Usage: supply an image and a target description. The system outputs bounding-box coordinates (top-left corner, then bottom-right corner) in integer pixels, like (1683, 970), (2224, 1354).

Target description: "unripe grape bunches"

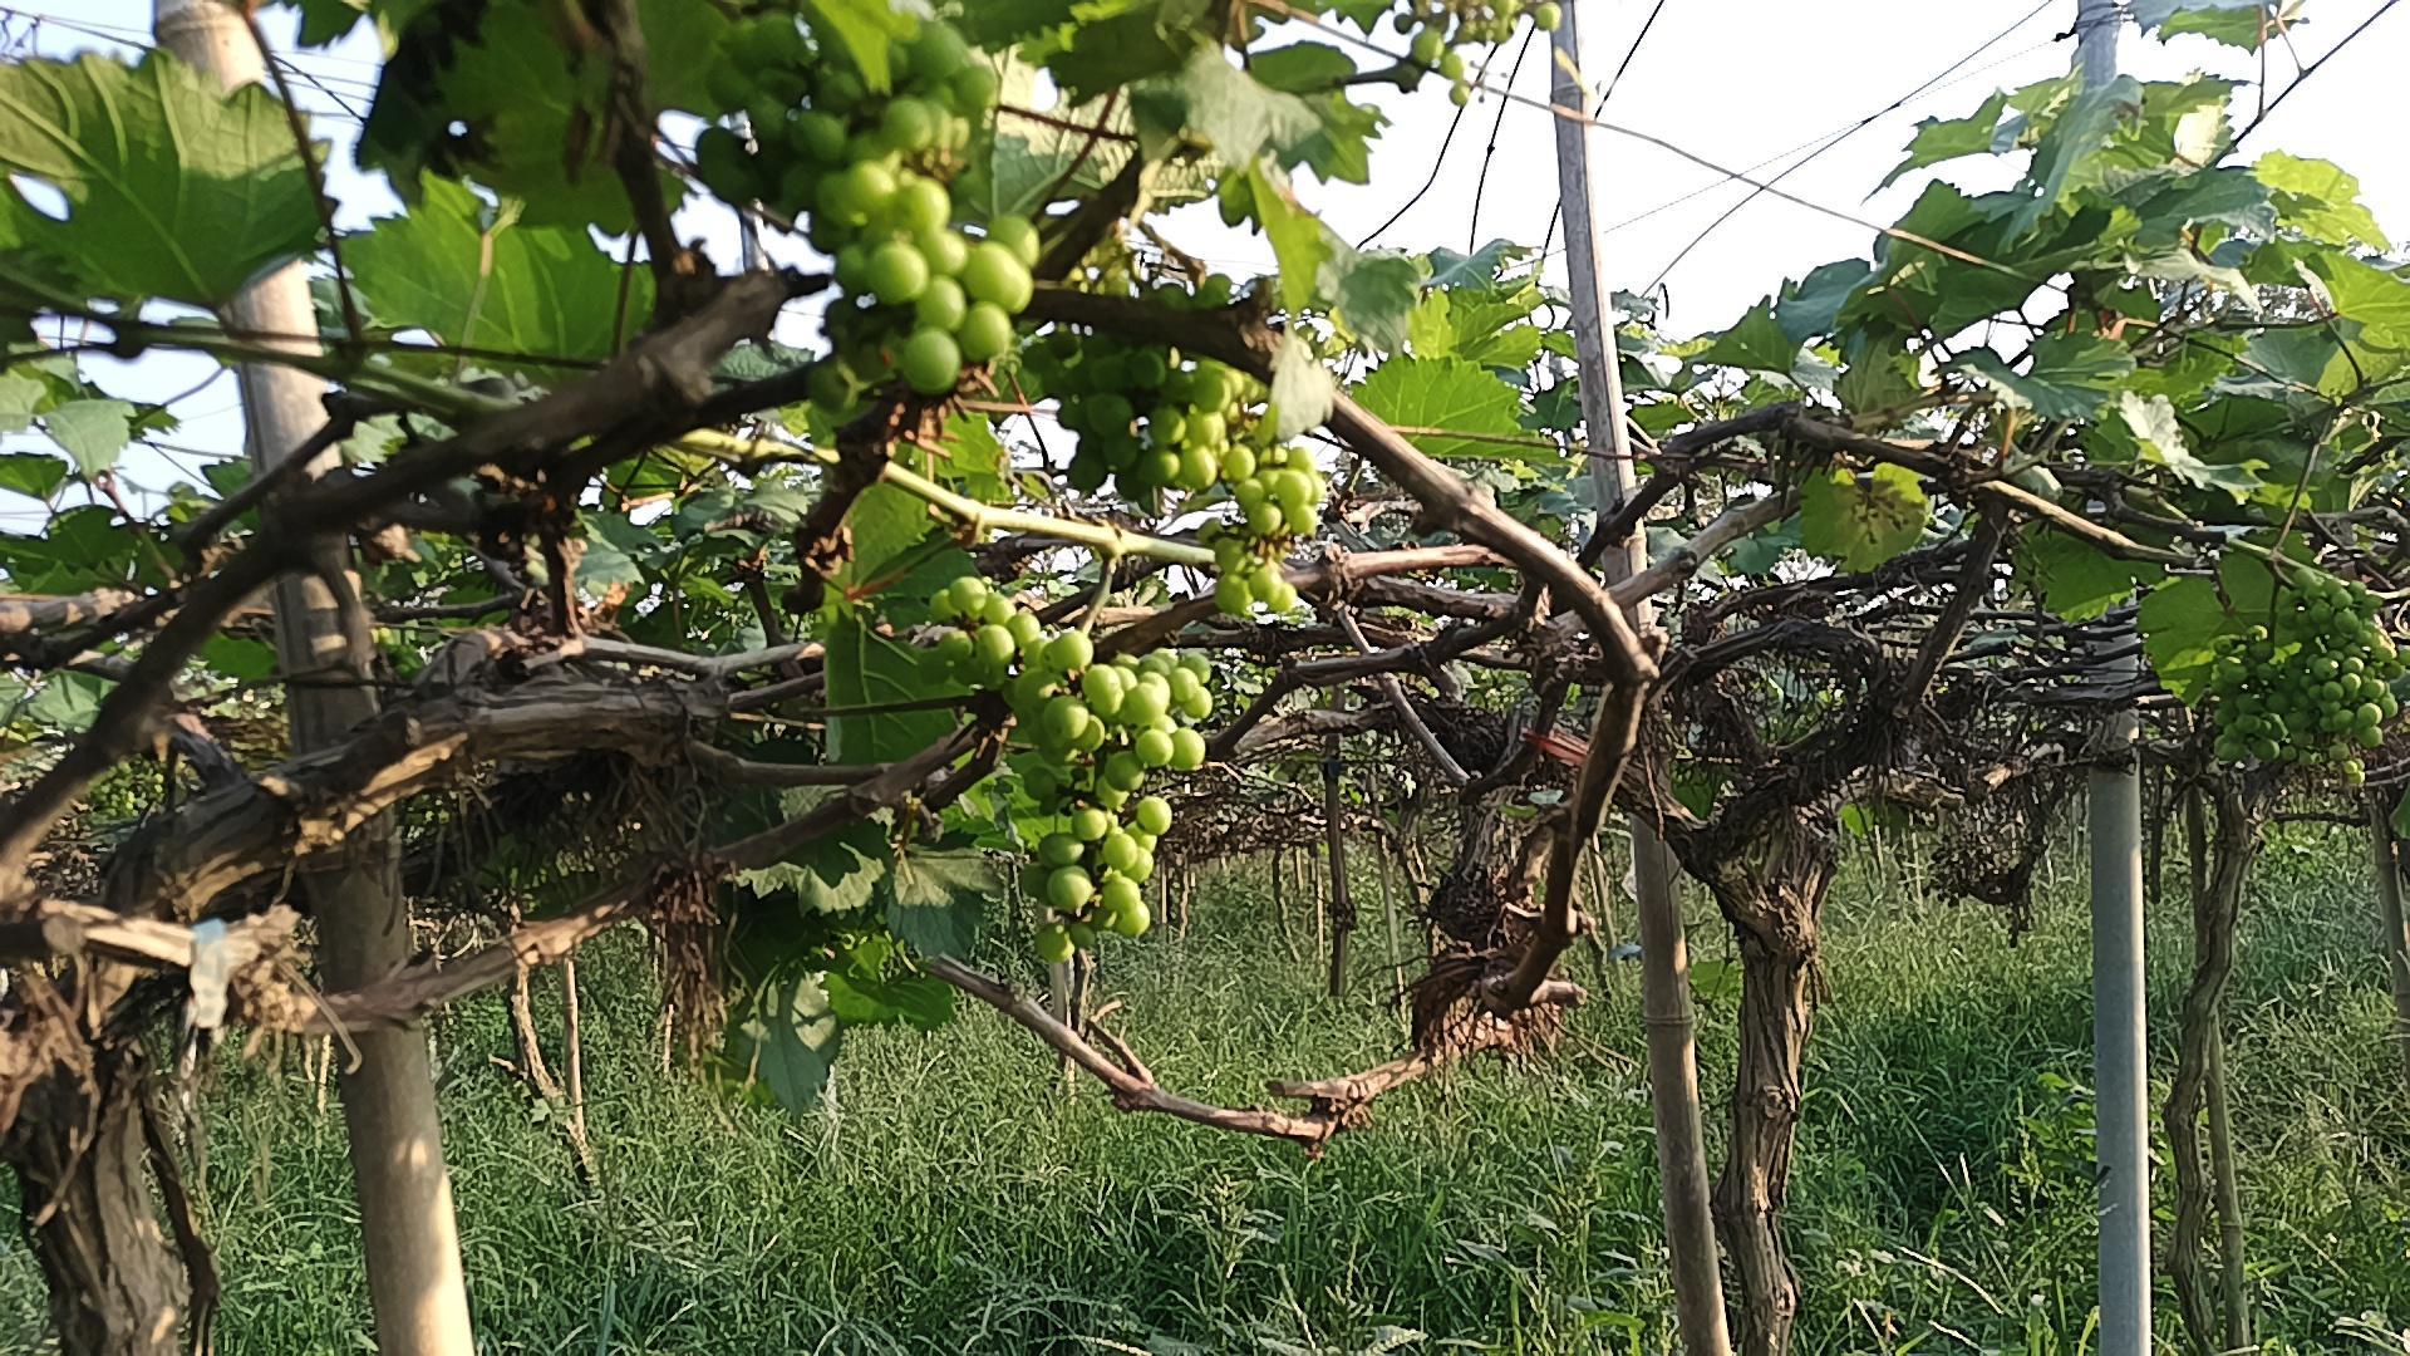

(2207, 566), (2402, 782)
(695, 0), (1041, 421)
(1027, 334), (1320, 614)
(933, 578), (1210, 963)
(1392, 0), (1558, 105)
